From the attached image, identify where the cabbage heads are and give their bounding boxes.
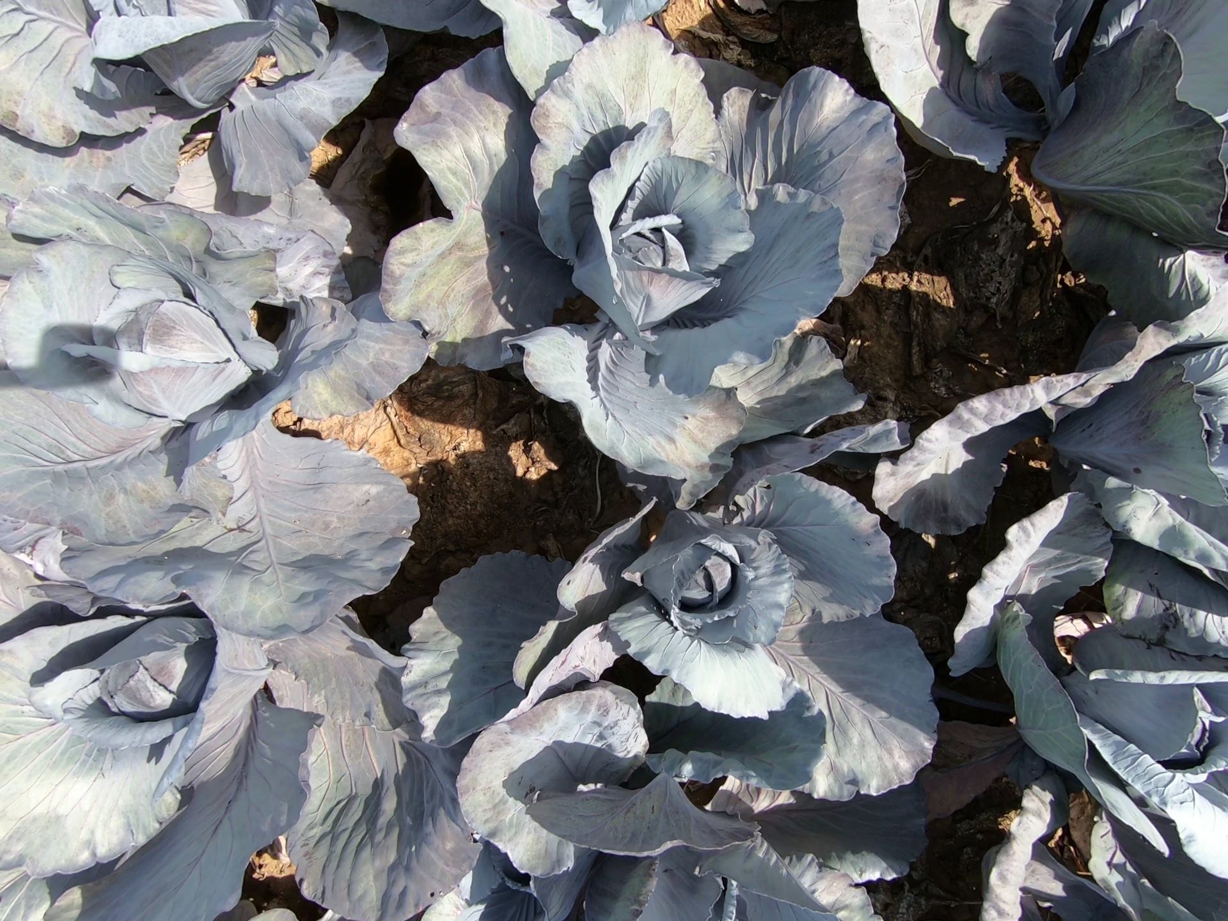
[1096,664,1210,763]
[600,223,687,322]
[112,2,260,89]
[104,629,230,724]
[1090,393,1210,471]
[584,824,721,919]
[100,299,246,414]
[657,535,732,608]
